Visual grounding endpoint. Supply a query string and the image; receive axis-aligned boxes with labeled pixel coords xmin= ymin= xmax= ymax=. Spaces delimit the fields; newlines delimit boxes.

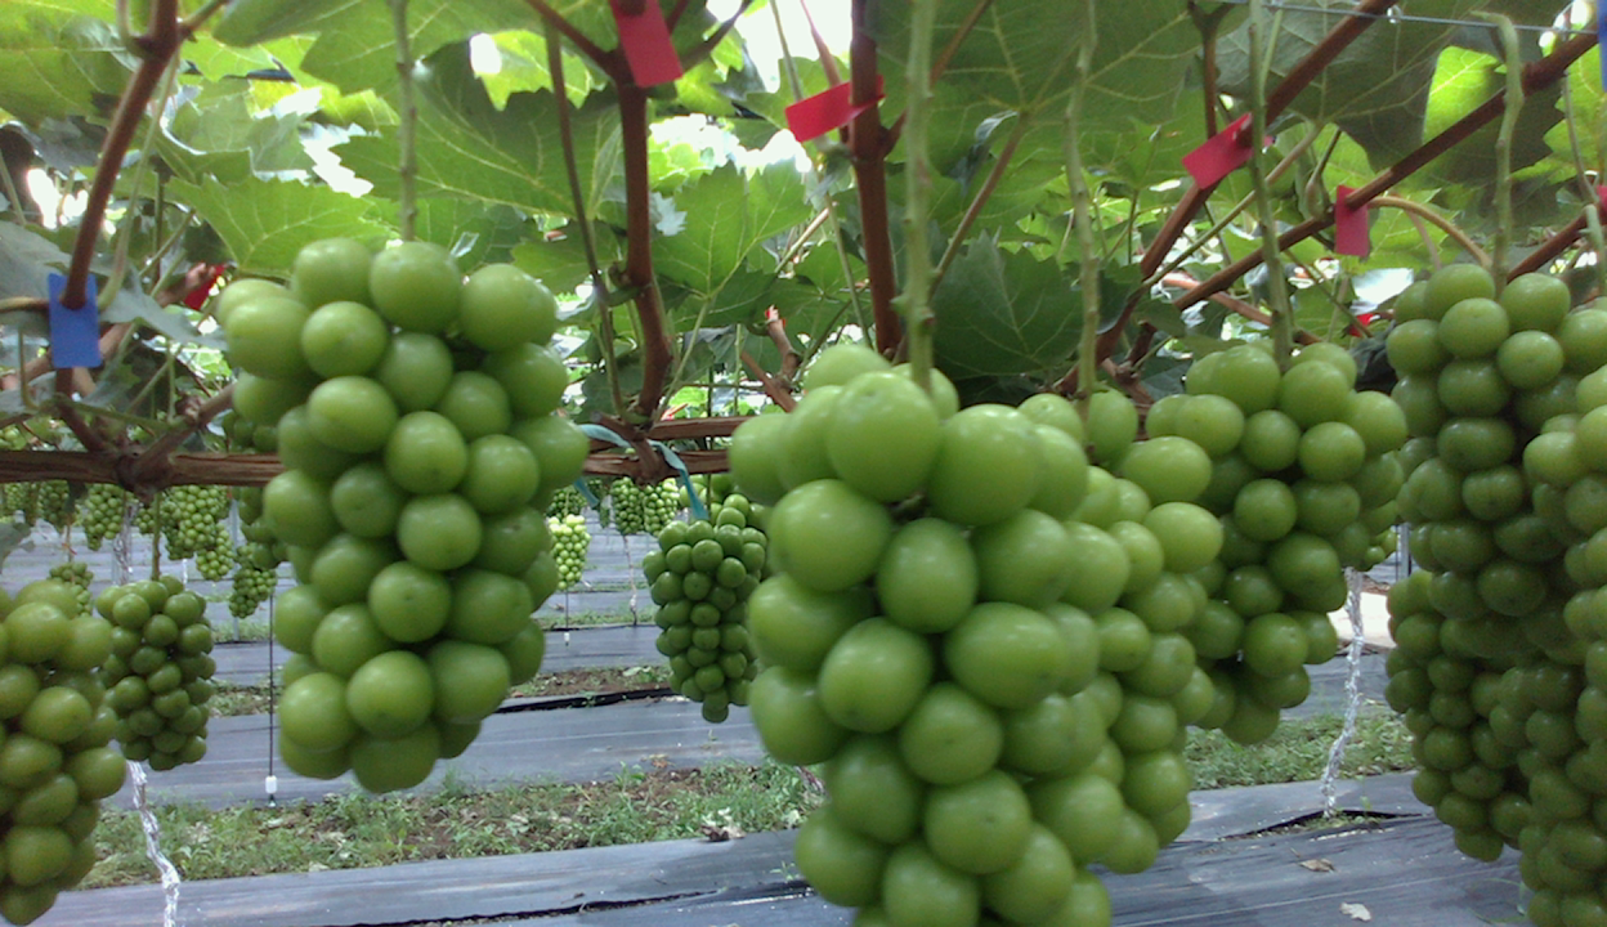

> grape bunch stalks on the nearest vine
xmin=1061 ymin=3 xmax=1105 ymax=415
xmin=1583 ymin=207 xmax=1606 ymax=292
xmin=894 ymin=1 xmax=940 ymax=389
xmin=1486 ymin=8 xmax=1519 ymax=292
xmin=391 ymin=1 xmax=417 ymax=239
xmin=1246 ymin=0 xmax=1294 ymax=370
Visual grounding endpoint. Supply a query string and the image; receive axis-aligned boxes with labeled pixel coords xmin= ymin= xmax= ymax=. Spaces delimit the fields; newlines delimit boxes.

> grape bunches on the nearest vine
xmin=1522 ymin=297 xmax=1606 ymax=784
xmin=1389 ymin=261 xmax=1577 ymax=655
xmin=1386 ymin=579 xmax=1528 ymax=861
xmin=1015 ymin=391 xmax=1219 ymax=874
xmin=1492 ymin=635 xmax=1606 ymax=926
xmin=1 ymin=579 xmax=127 ymax=926
xmin=730 ymin=342 xmax=1132 ymax=926
xmin=1146 ymin=342 xmax=1410 ymax=748
xmin=215 ymin=239 xmax=587 ymax=794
